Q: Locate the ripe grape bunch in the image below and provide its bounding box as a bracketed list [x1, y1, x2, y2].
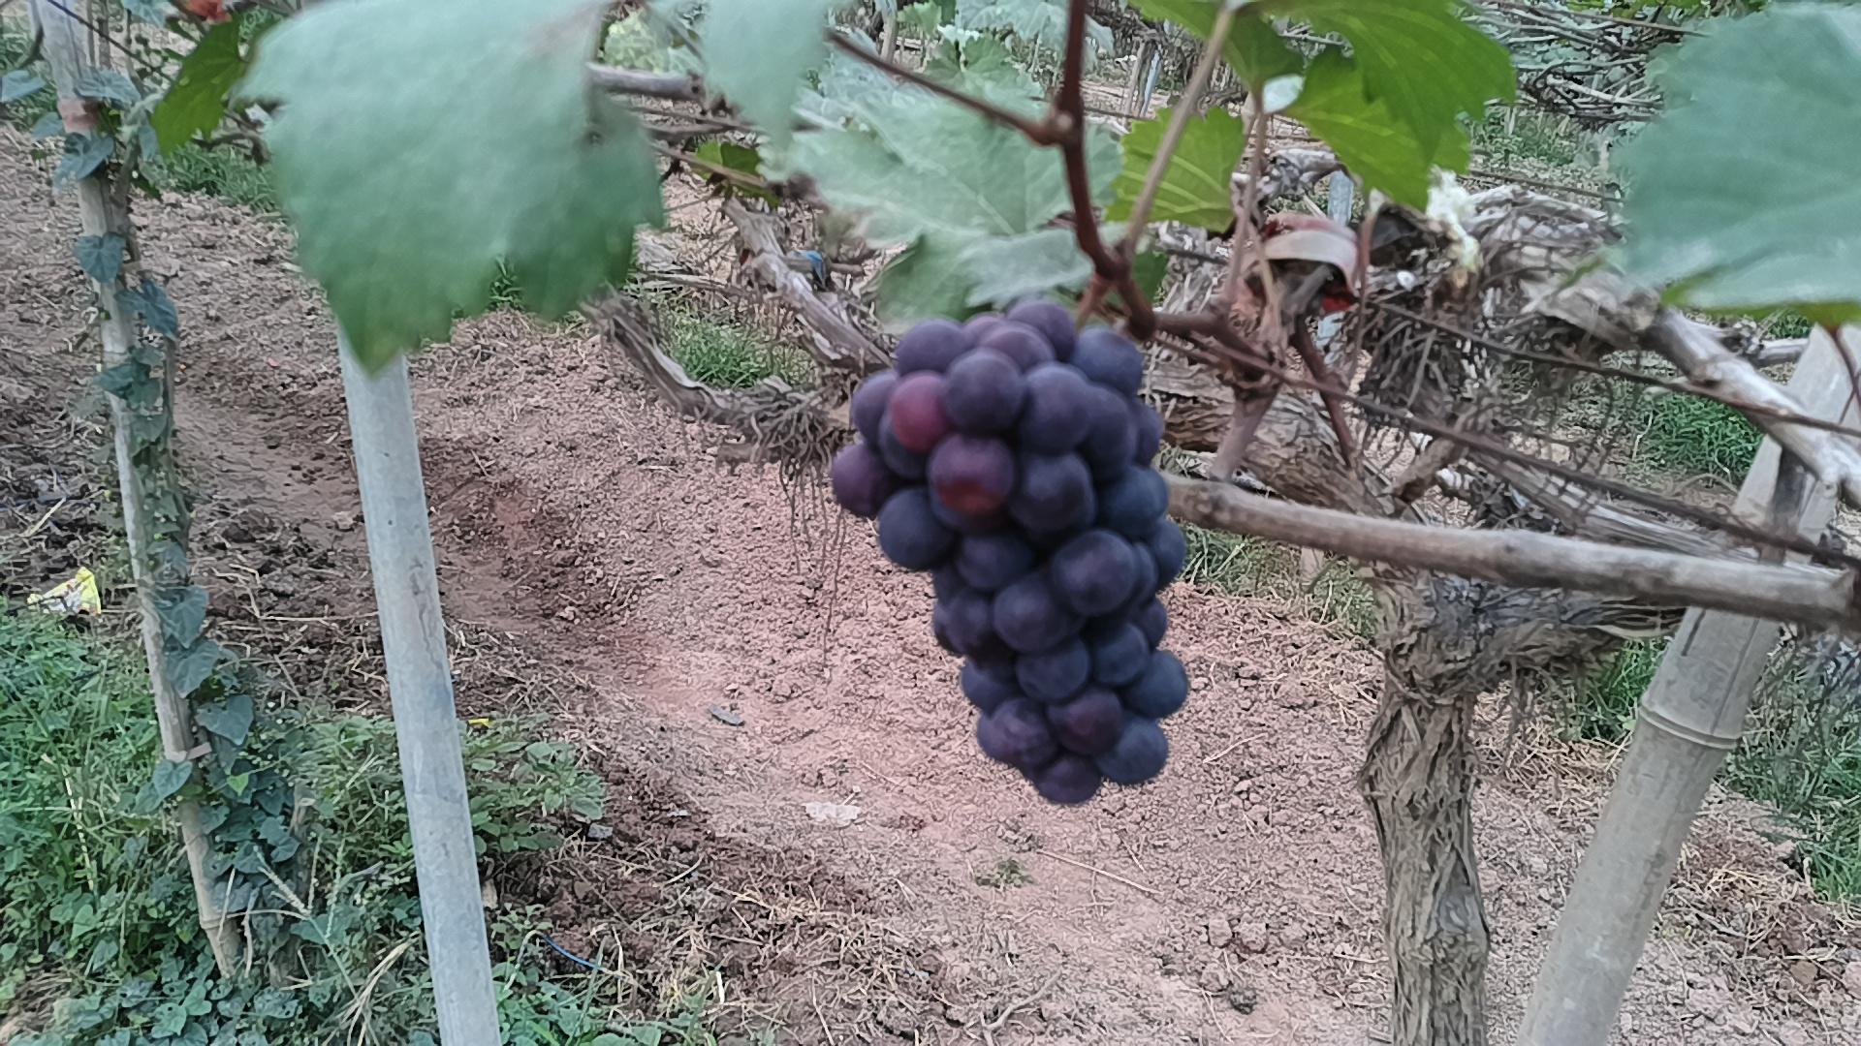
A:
[832, 298, 1188, 803]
